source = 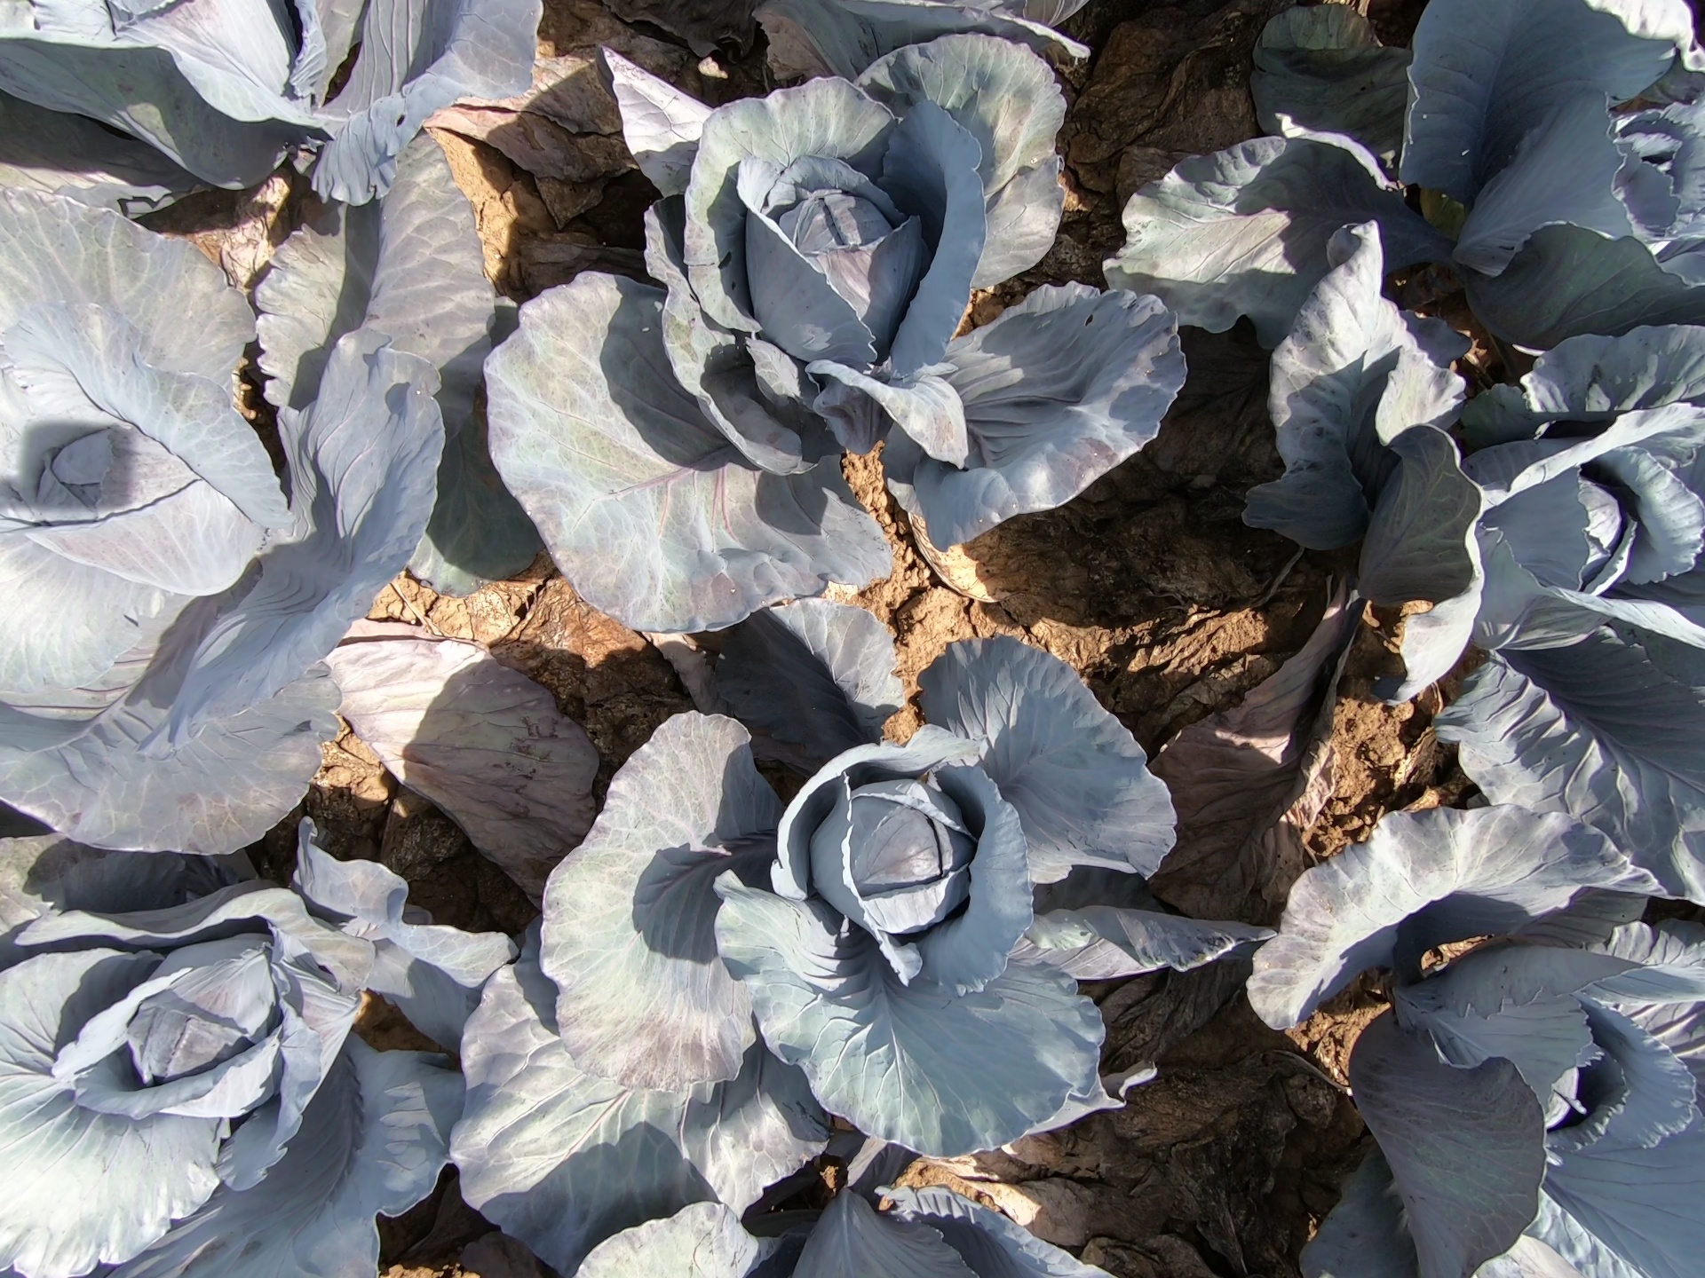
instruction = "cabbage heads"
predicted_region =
[1471,466,1633,619]
[1499,145,1675,290]
[1429,1003,1589,1140]
[36,420,265,591]
[106,2,298,150]
[813,777,979,934]
[124,937,302,1118]
[771,188,912,342]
